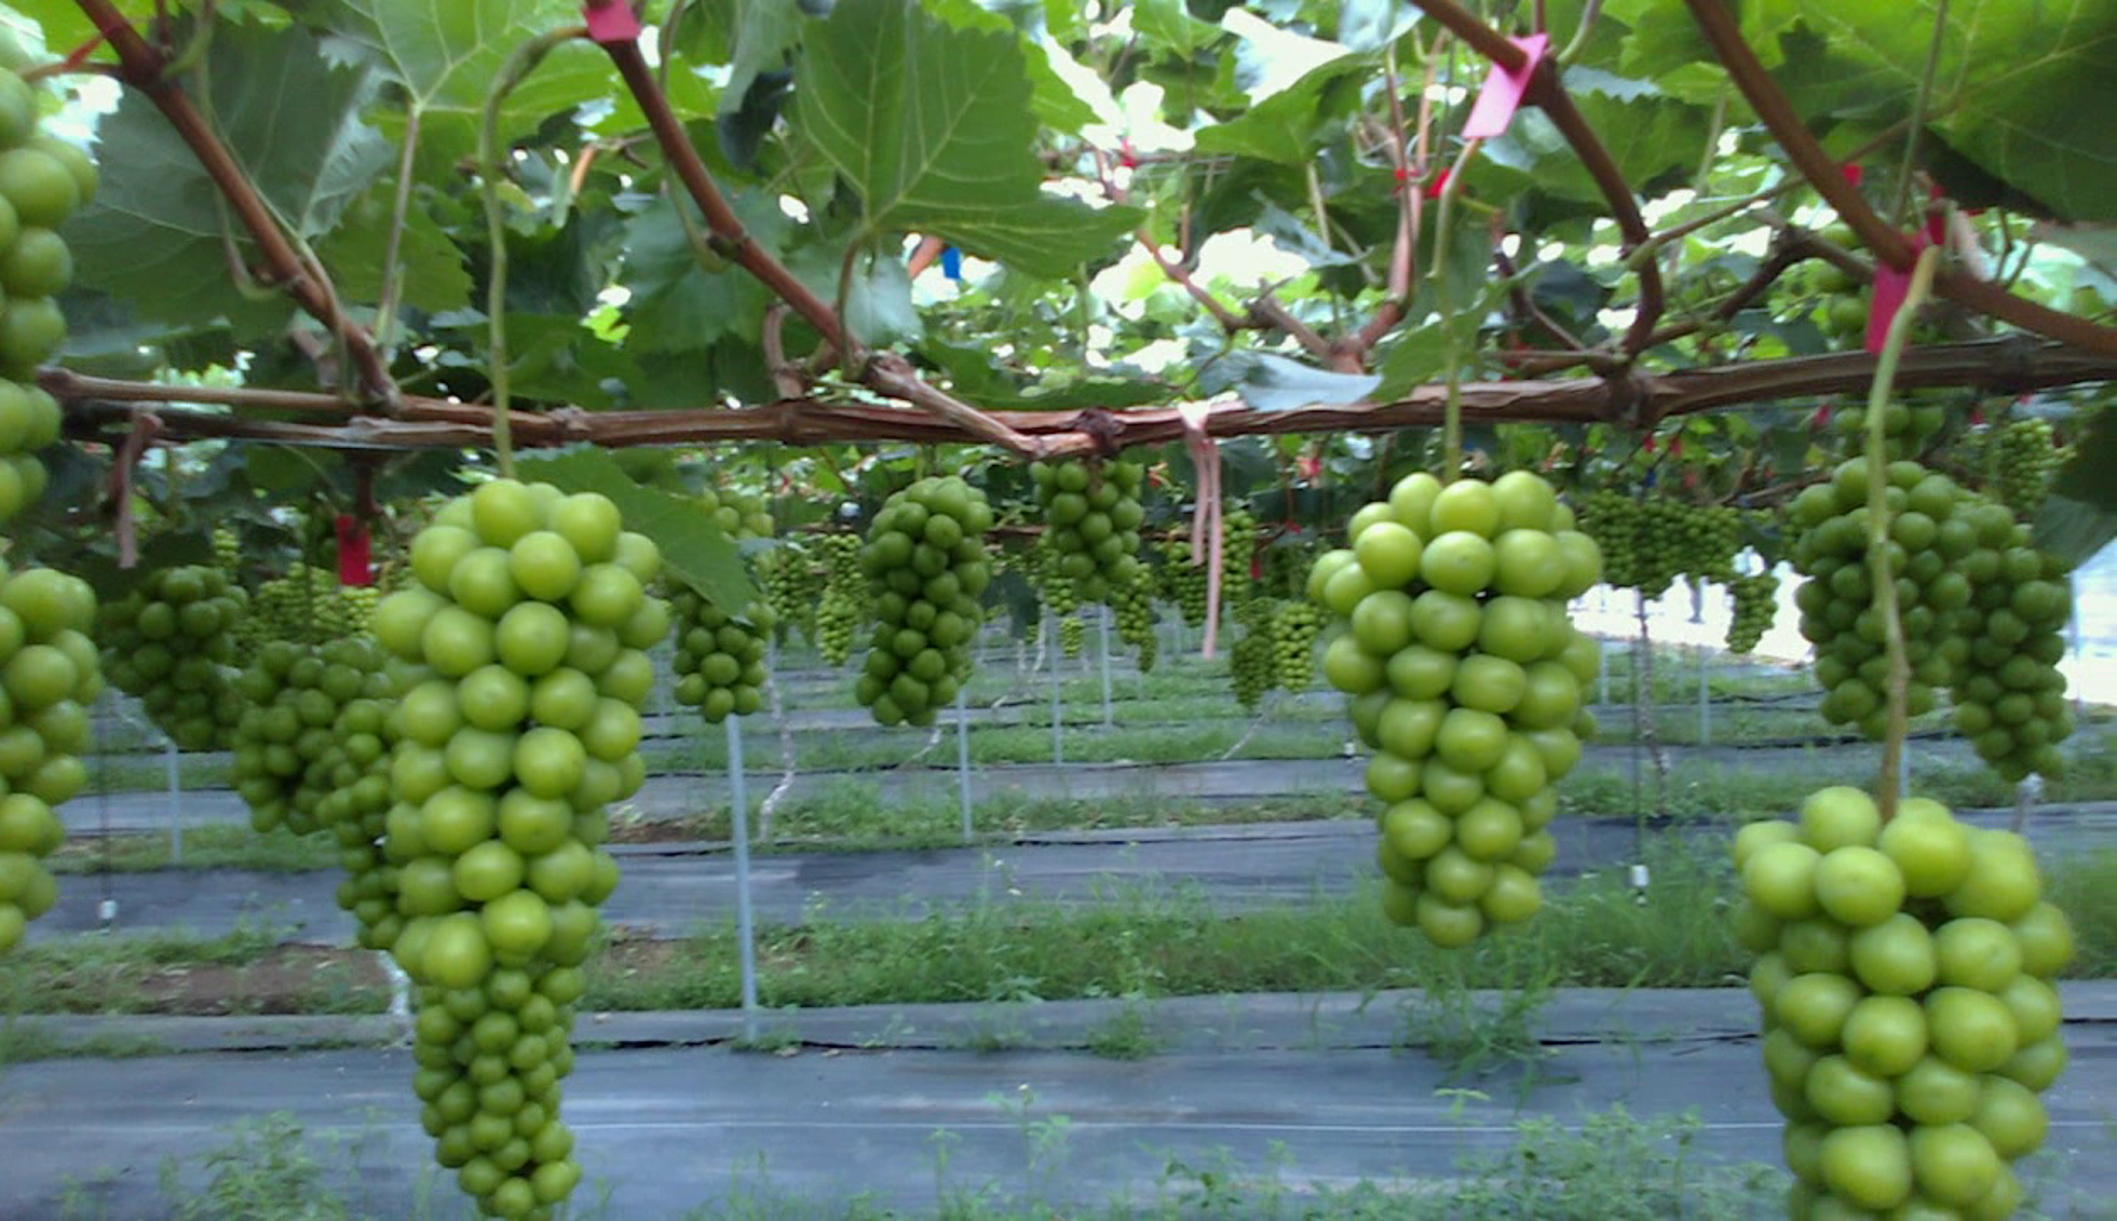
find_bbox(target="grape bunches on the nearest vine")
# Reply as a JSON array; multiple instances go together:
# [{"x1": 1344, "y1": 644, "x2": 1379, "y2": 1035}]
[
  {"x1": 1306, "y1": 470, "x2": 1601, "y2": 950},
  {"x1": 375, "y1": 478, "x2": 668, "y2": 994},
  {"x1": 1730, "y1": 787, "x2": 2075, "y2": 1219}
]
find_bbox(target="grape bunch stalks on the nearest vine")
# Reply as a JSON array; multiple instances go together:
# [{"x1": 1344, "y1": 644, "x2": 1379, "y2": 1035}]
[
  {"x1": 478, "y1": 24, "x2": 589, "y2": 478},
  {"x1": 1422, "y1": 137, "x2": 1483, "y2": 487},
  {"x1": 1866, "y1": 244, "x2": 1939, "y2": 824}
]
